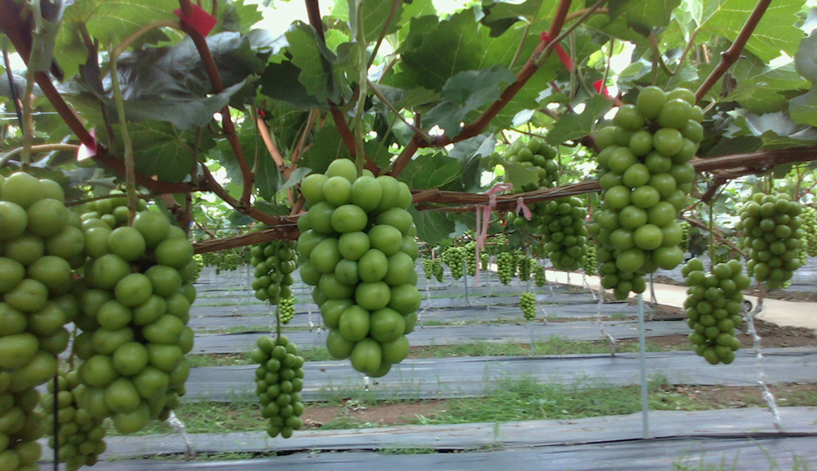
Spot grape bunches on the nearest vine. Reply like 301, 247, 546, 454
595, 86, 704, 273
1, 175, 84, 391
72, 211, 198, 434
298, 160, 419, 377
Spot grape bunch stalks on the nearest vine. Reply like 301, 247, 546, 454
109, 19, 177, 225
648, 33, 659, 85
20, 0, 40, 173
354, 1, 367, 177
